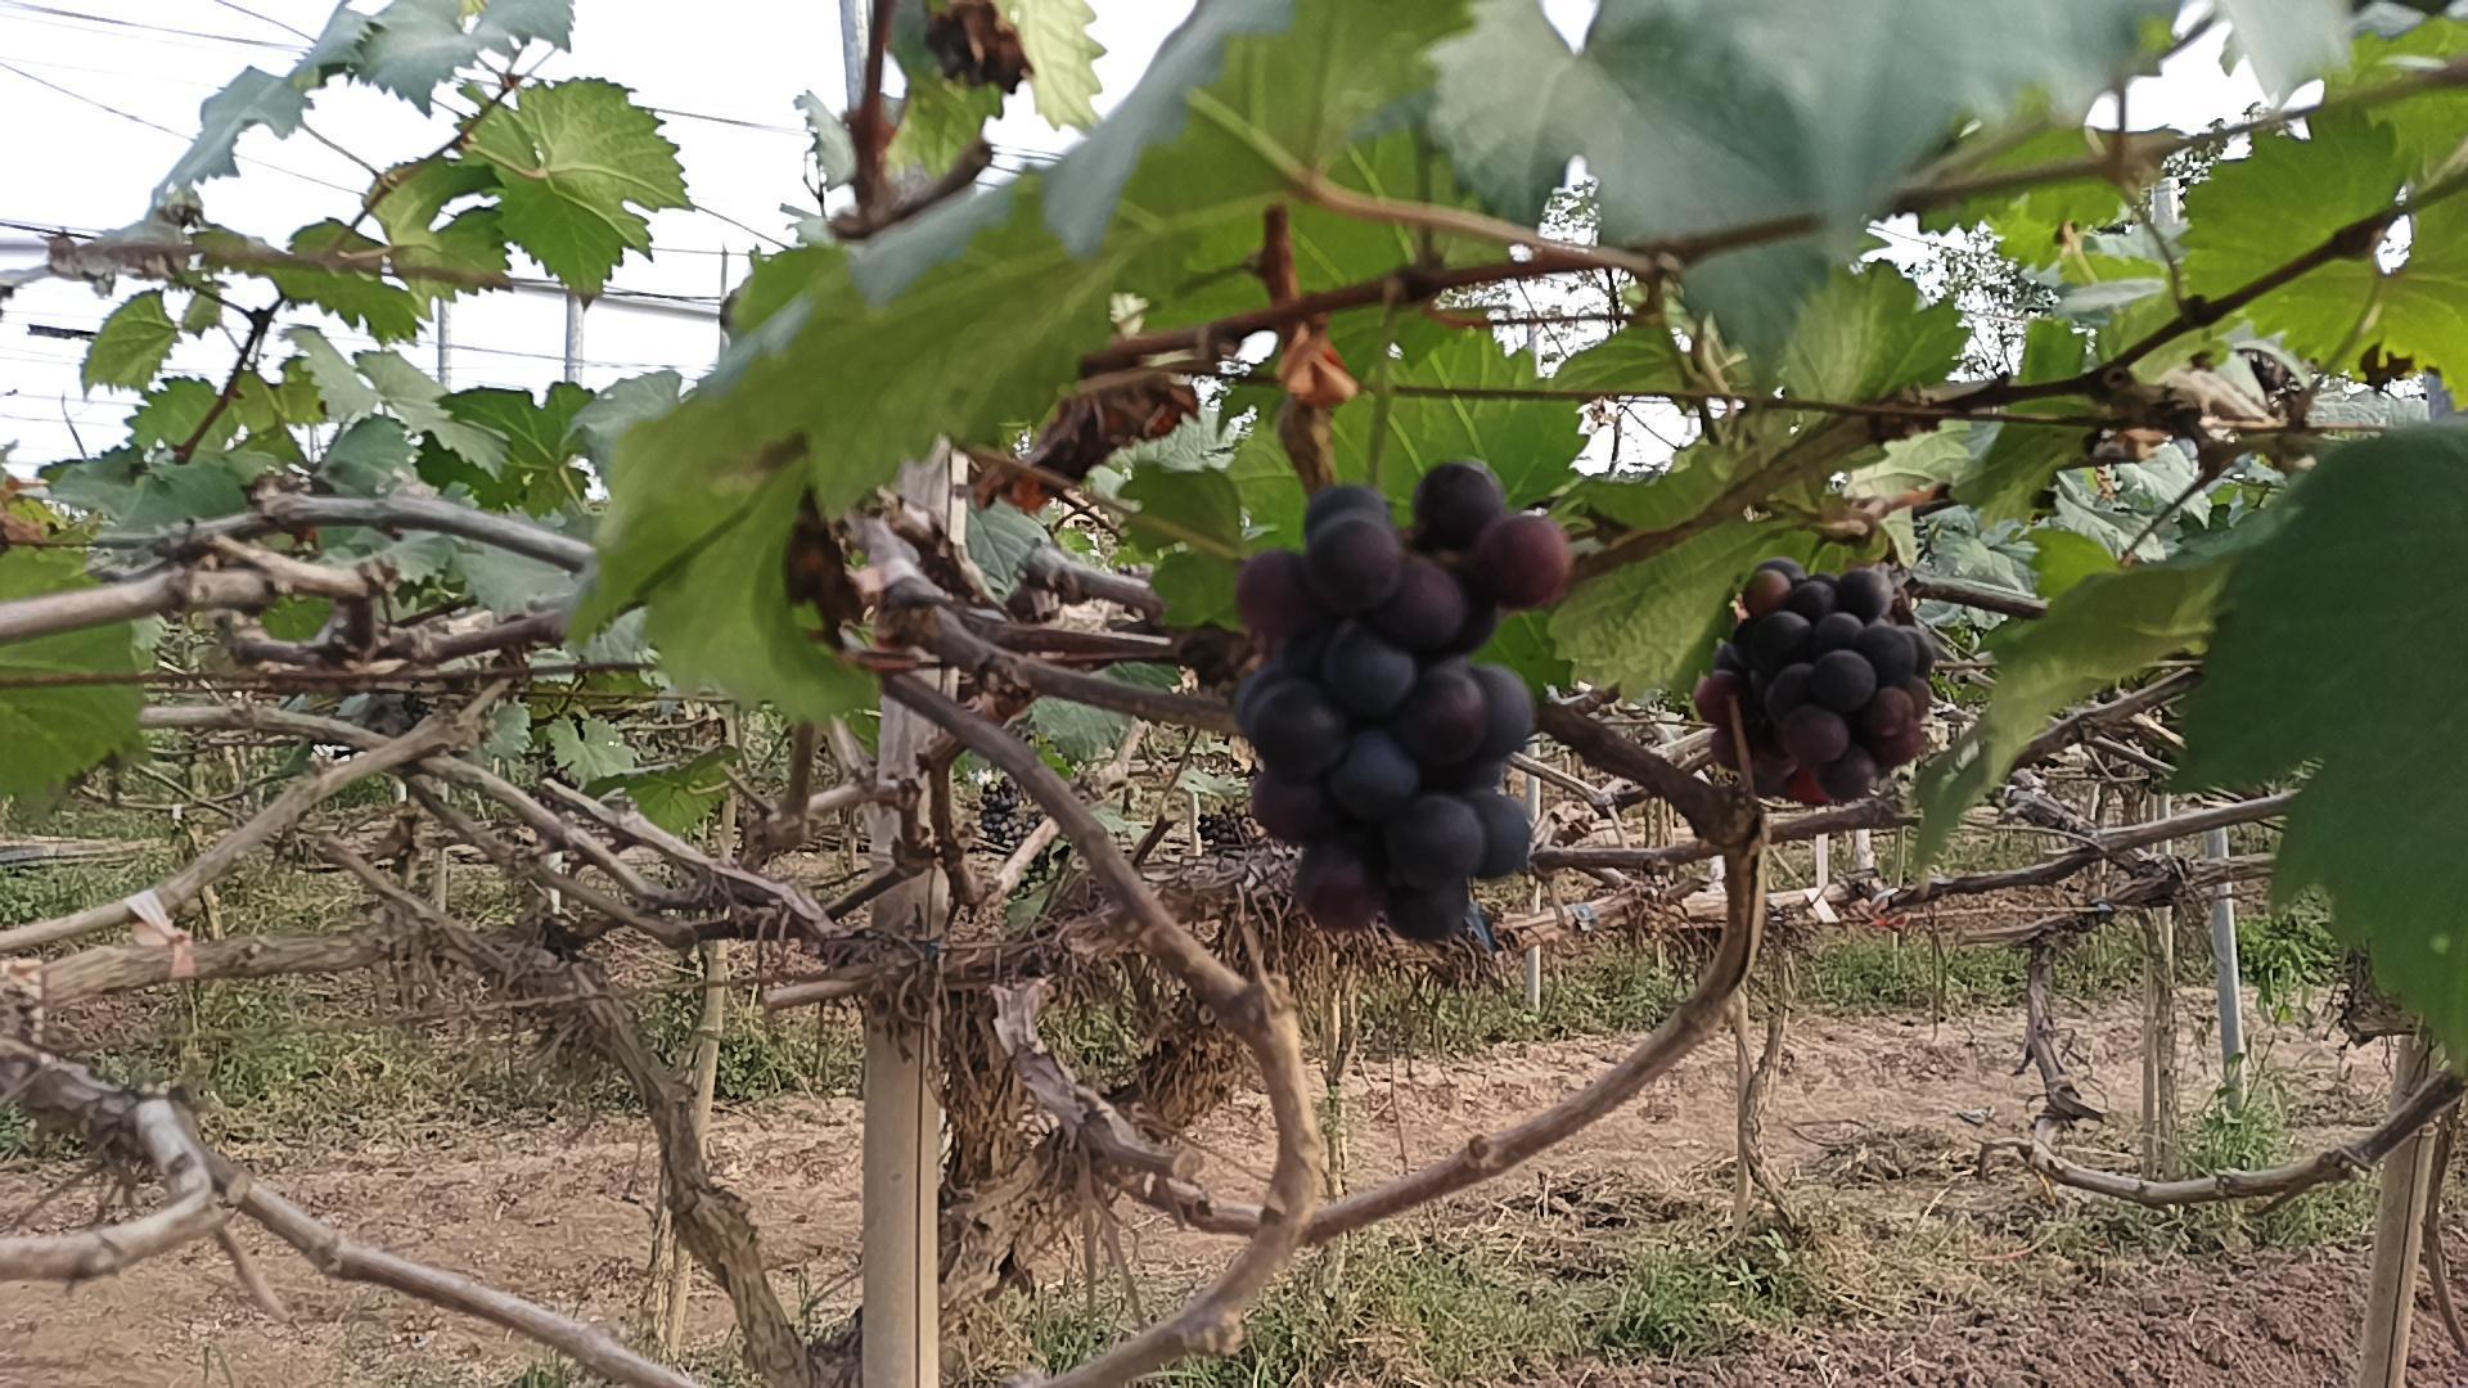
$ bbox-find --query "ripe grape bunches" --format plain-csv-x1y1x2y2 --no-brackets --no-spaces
1695,559,1933,805
1231,463,1571,938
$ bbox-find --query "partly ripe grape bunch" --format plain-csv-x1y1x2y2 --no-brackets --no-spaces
976,772,1031,853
